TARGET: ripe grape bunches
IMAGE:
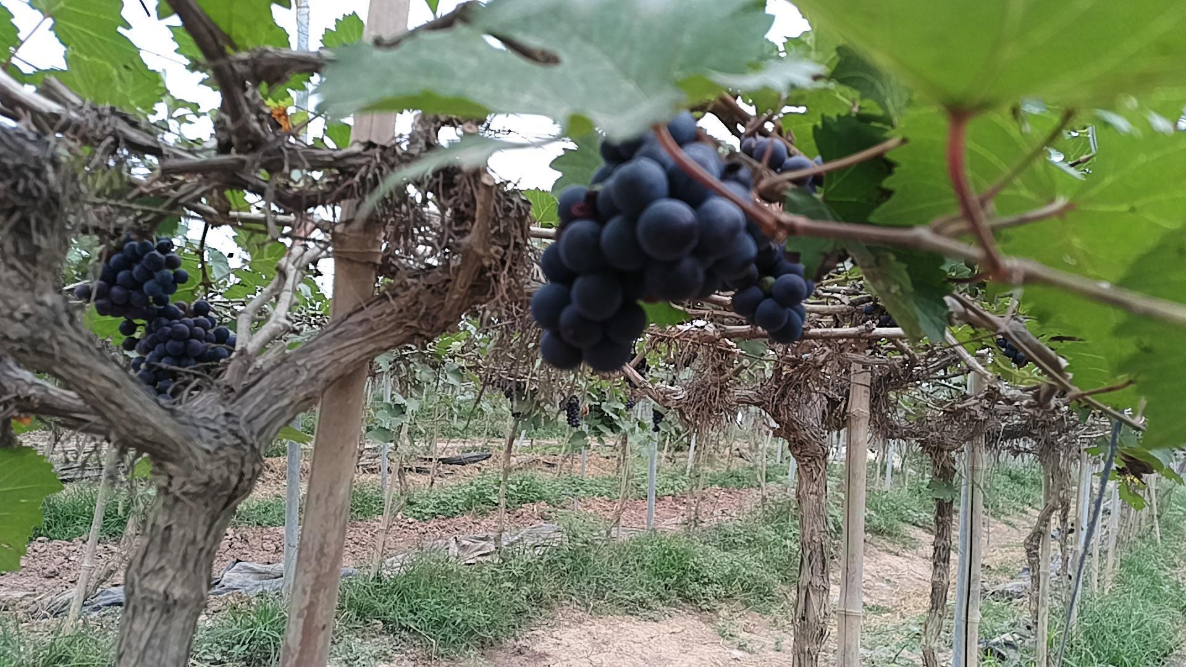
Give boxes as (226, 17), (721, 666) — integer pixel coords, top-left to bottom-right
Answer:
(531, 112), (825, 371)
(74, 238), (235, 395)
